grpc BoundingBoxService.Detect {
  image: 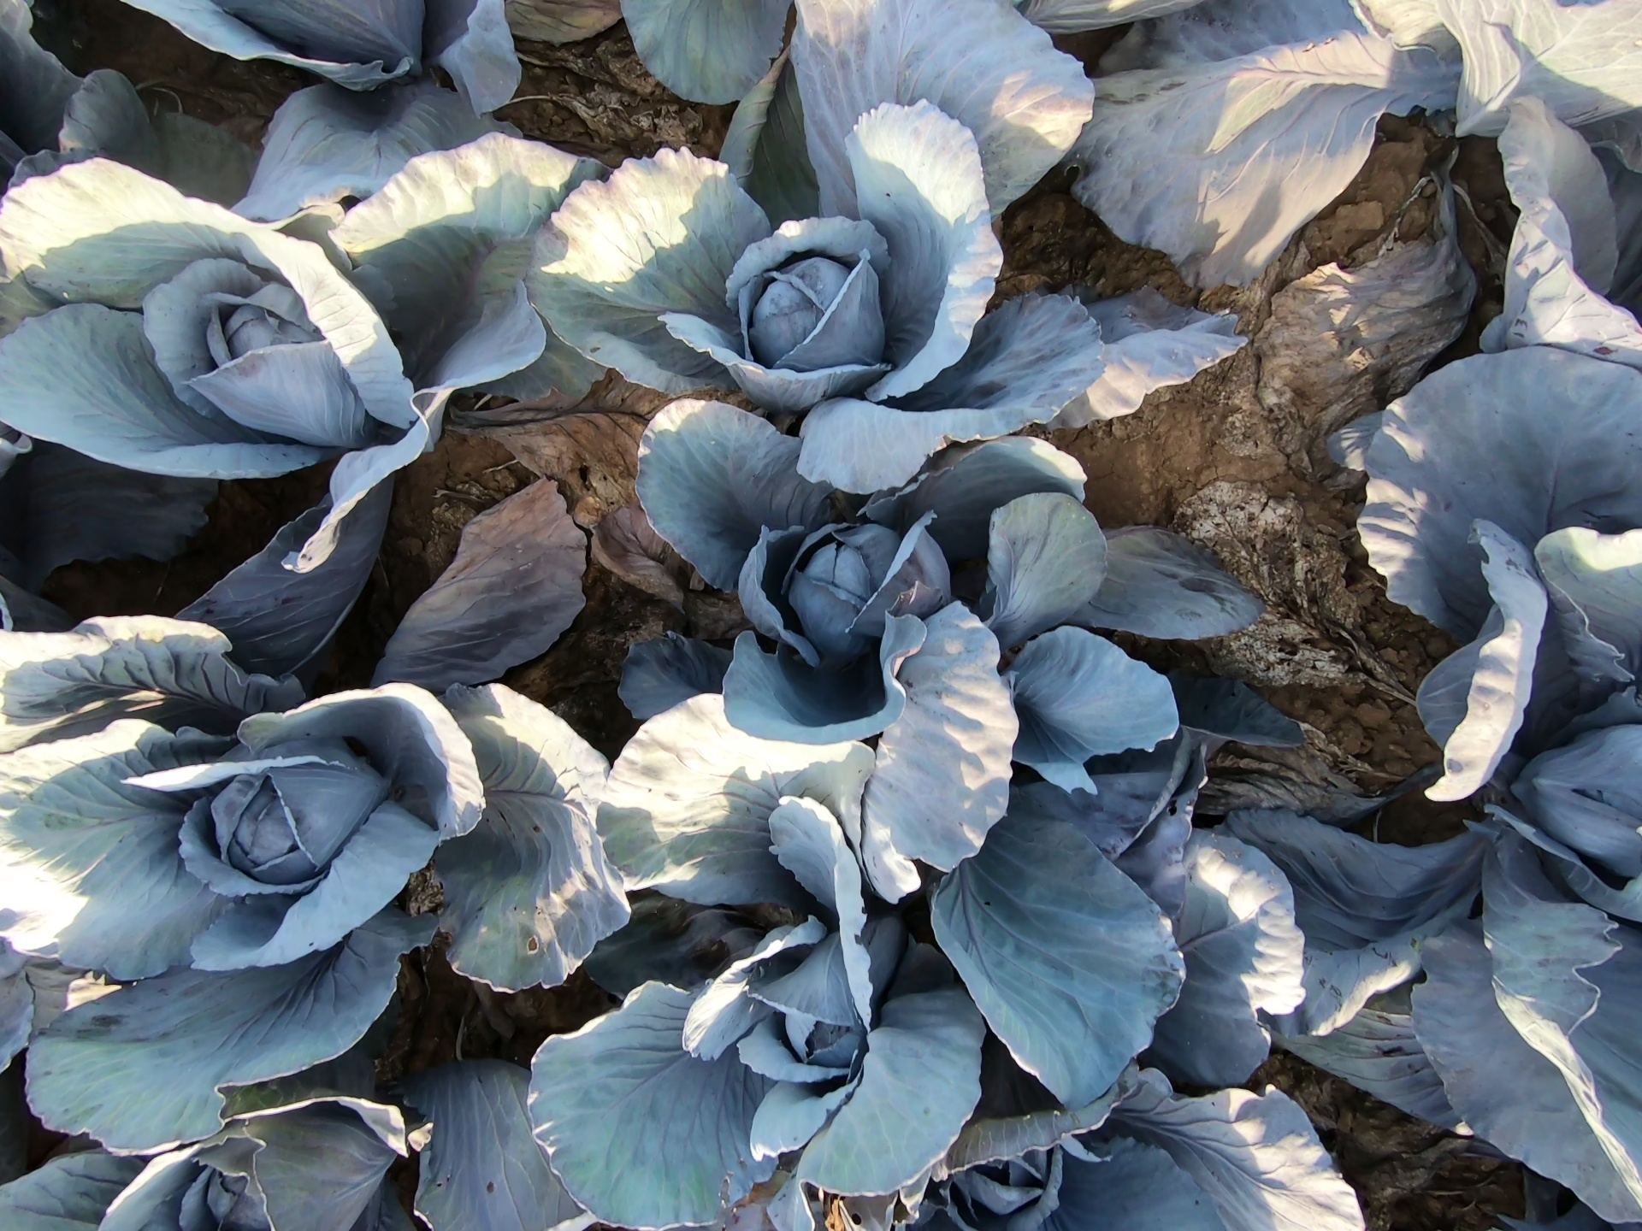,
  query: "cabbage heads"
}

[792,531,918,657]
[222,294,348,433]
[204,1115,363,1227]
[218,747,366,886]
[1555,722,1639,880]
[753,257,865,370]
[781,963,875,1063]
[962,1110,1052,1211]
